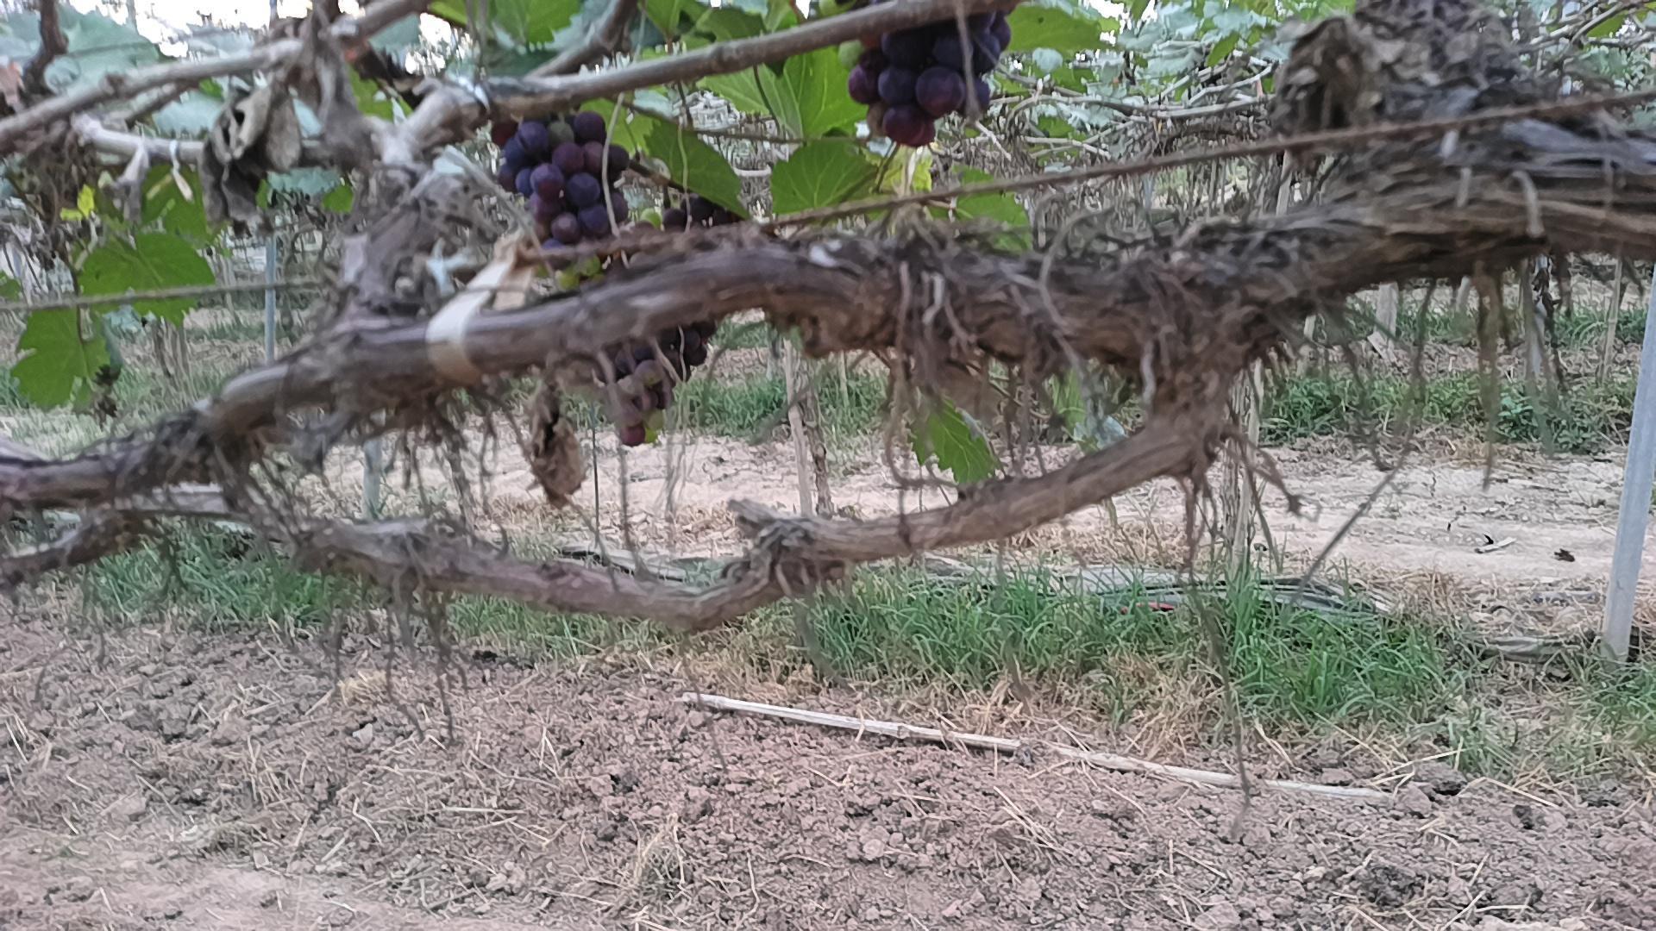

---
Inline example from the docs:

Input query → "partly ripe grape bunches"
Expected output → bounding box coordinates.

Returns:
[591,194,752,446]
[492,111,632,289]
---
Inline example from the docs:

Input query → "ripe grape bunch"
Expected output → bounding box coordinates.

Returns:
[850,11,1011,147]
